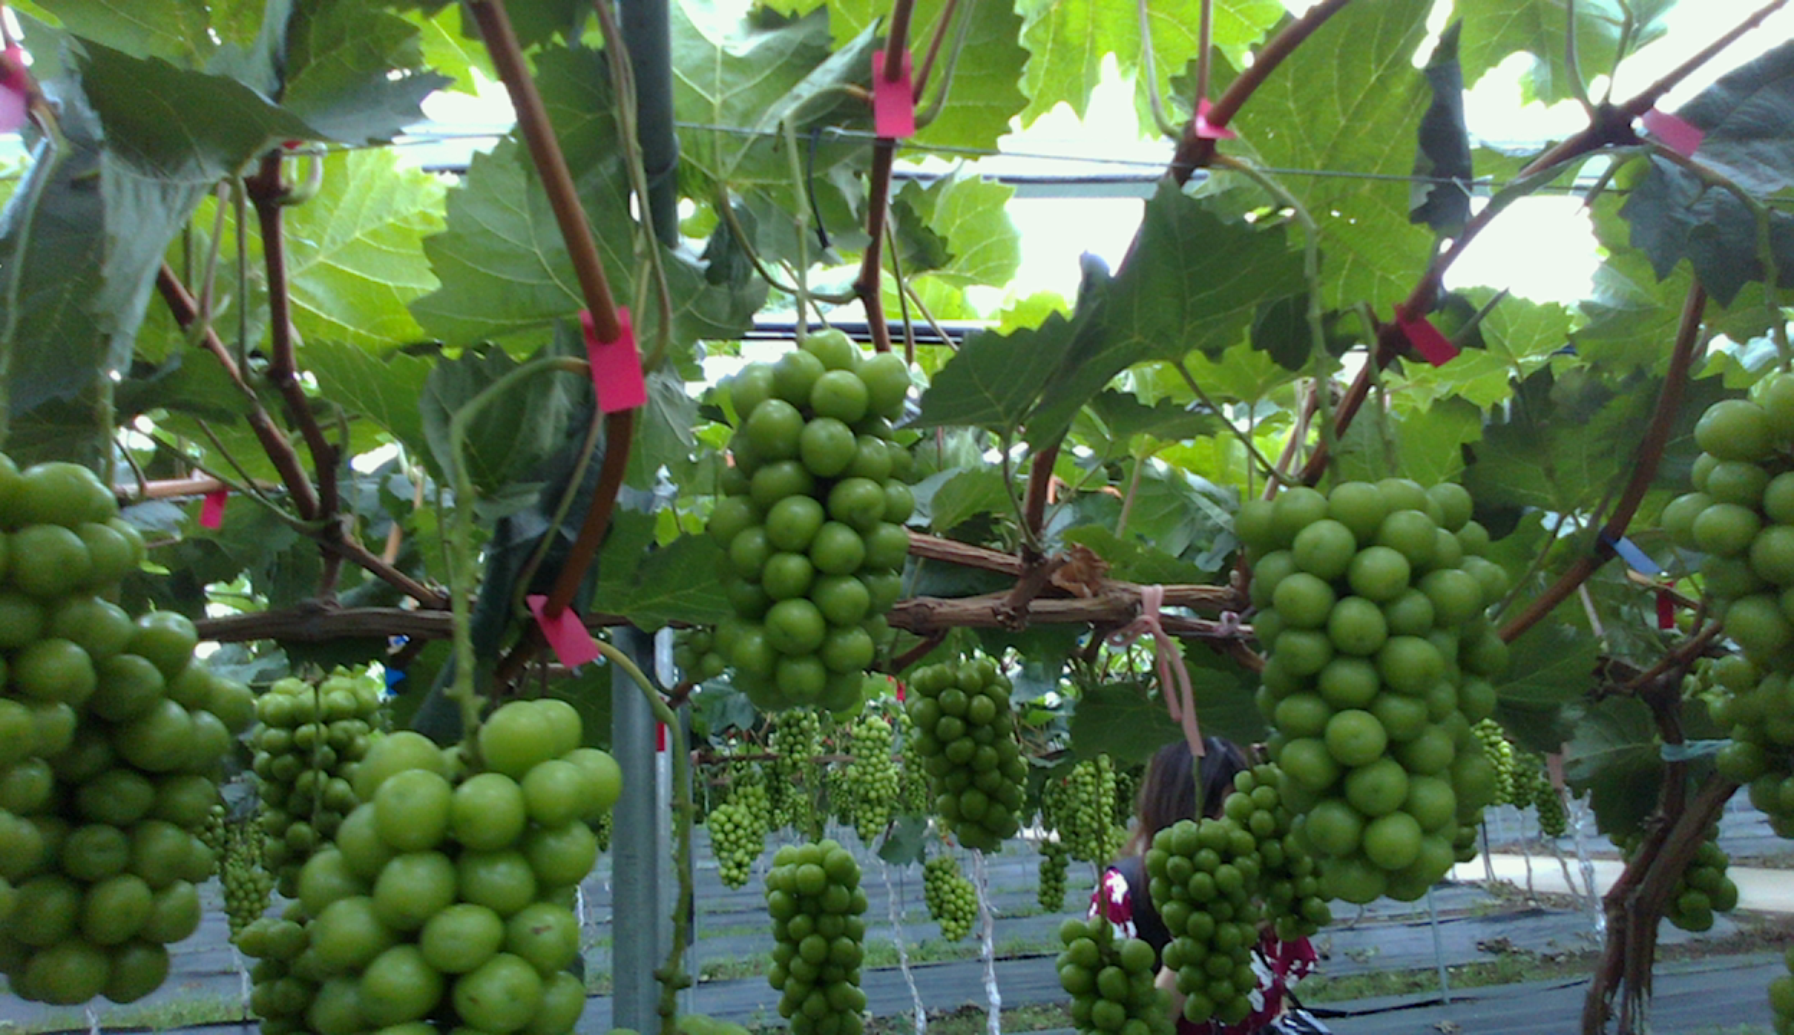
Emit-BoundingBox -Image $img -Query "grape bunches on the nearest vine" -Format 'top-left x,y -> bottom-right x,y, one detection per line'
707,328 -> 914,722
1660,374 -> 1793,844
7,461 -> 250,1006
1236,476 -> 1481,904
296,697 -> 627,1034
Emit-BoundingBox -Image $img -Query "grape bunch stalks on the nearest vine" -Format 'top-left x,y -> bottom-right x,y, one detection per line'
779,82 -> 874,349
1199,149 -> 1340,497
1607,132 -> 1793,377
440,356 -> 597,773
